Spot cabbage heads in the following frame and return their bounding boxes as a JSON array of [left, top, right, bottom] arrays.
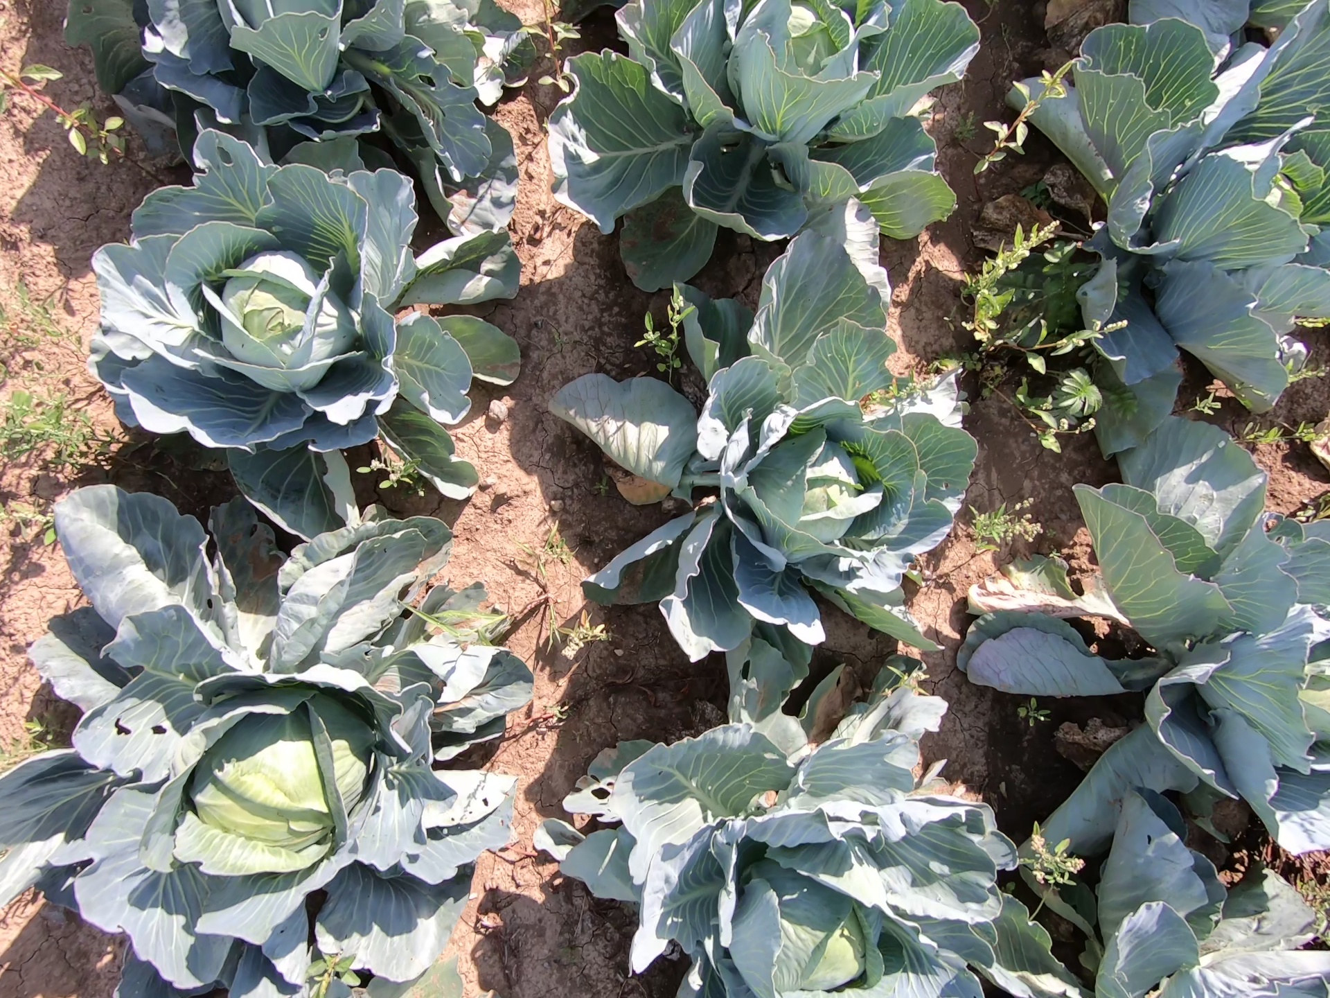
[[225, 3, 343, 60], [1241, 618, 1329, 739], [1210, 161, 1295, 245], [745, 2, 855, 121], [736, 861, 881, 992], [220, 254, 344, 373], [188, 694, 365, 850], [763, 444, 855, 544]]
